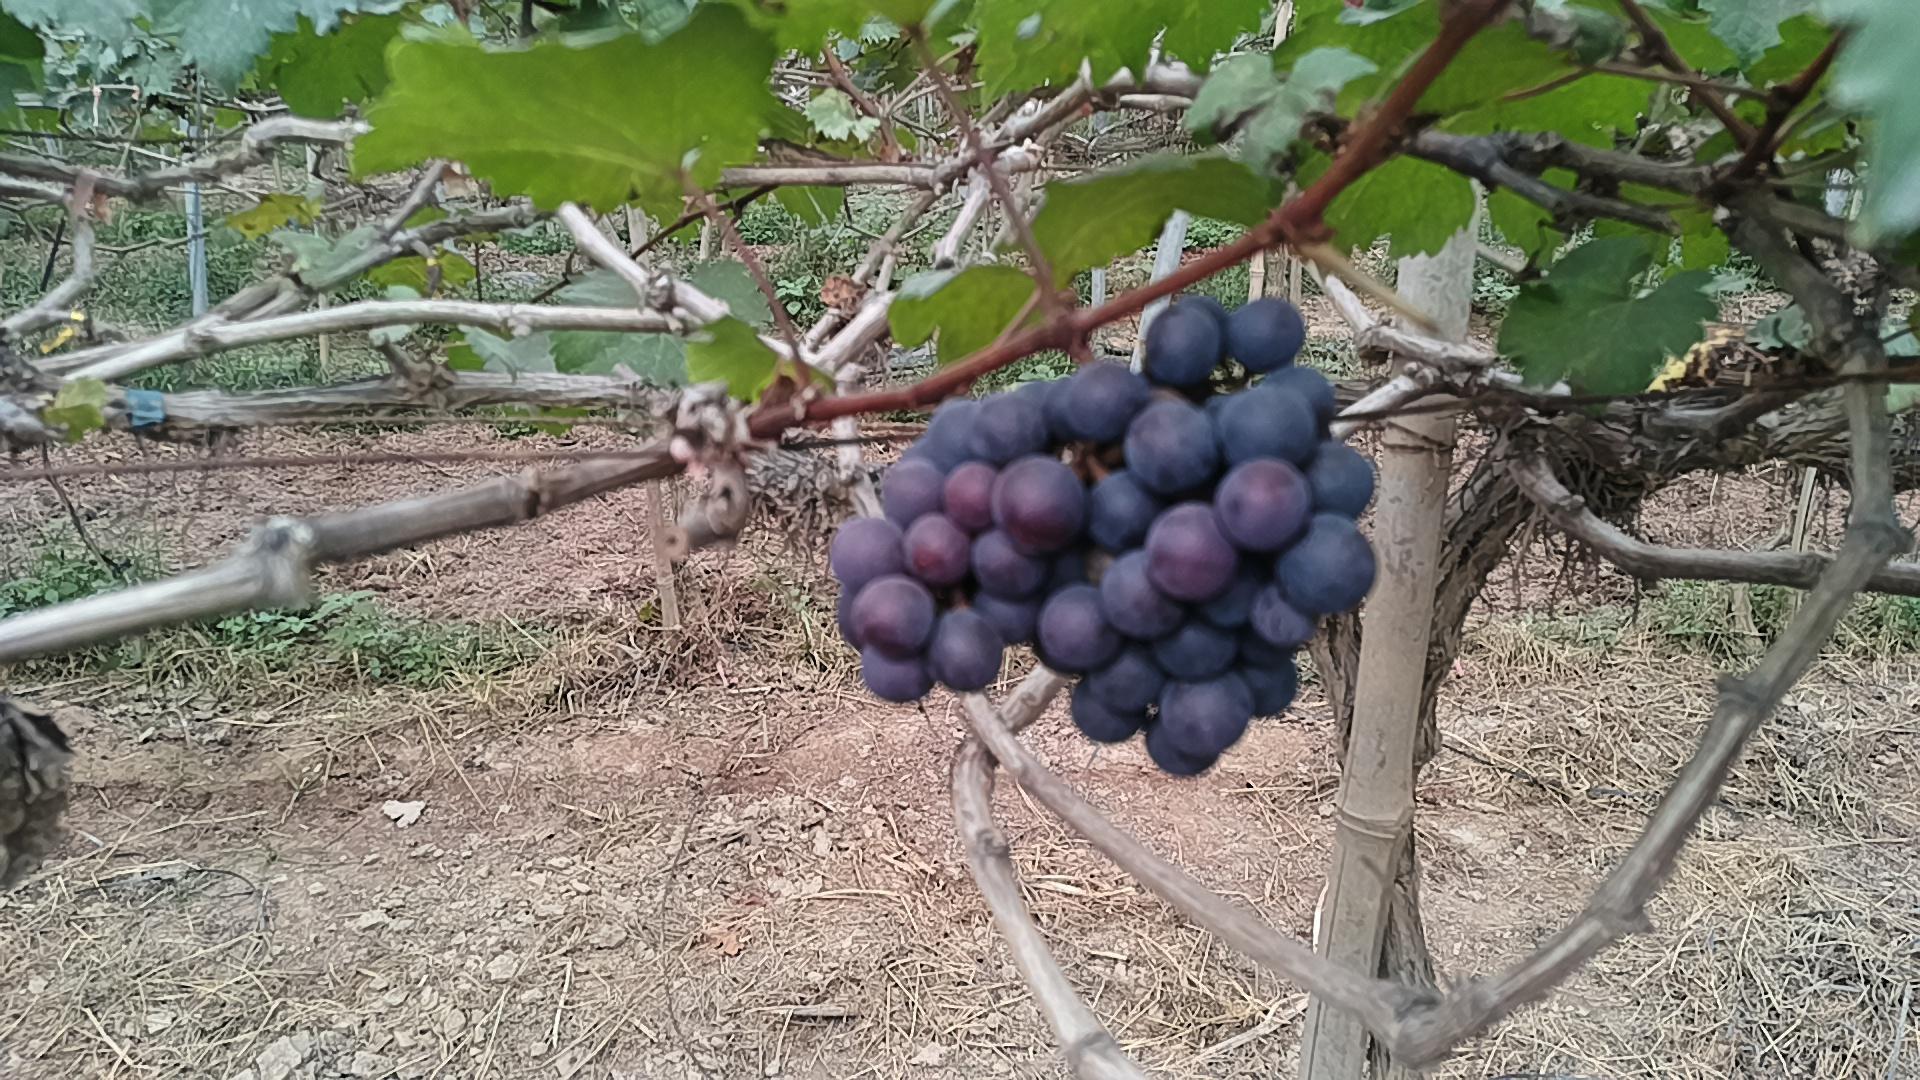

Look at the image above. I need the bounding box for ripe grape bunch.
[831,297,1374,775]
